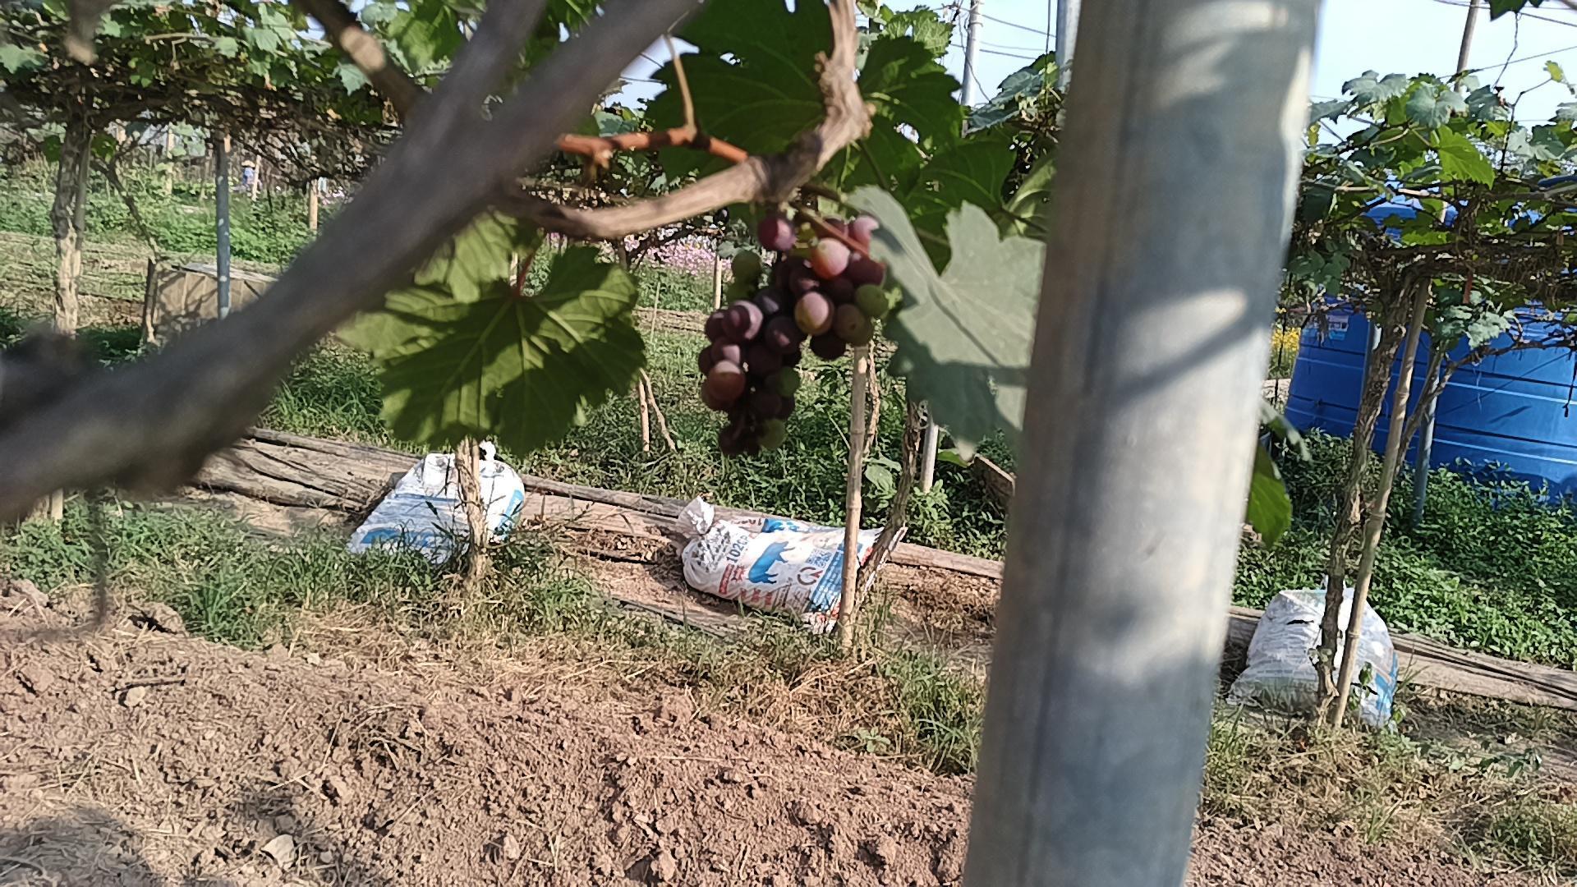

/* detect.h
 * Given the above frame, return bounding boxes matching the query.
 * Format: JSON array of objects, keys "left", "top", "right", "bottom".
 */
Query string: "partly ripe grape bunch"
[{"left": 698, "top": 212, "right": 890, "bottom": 454}]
